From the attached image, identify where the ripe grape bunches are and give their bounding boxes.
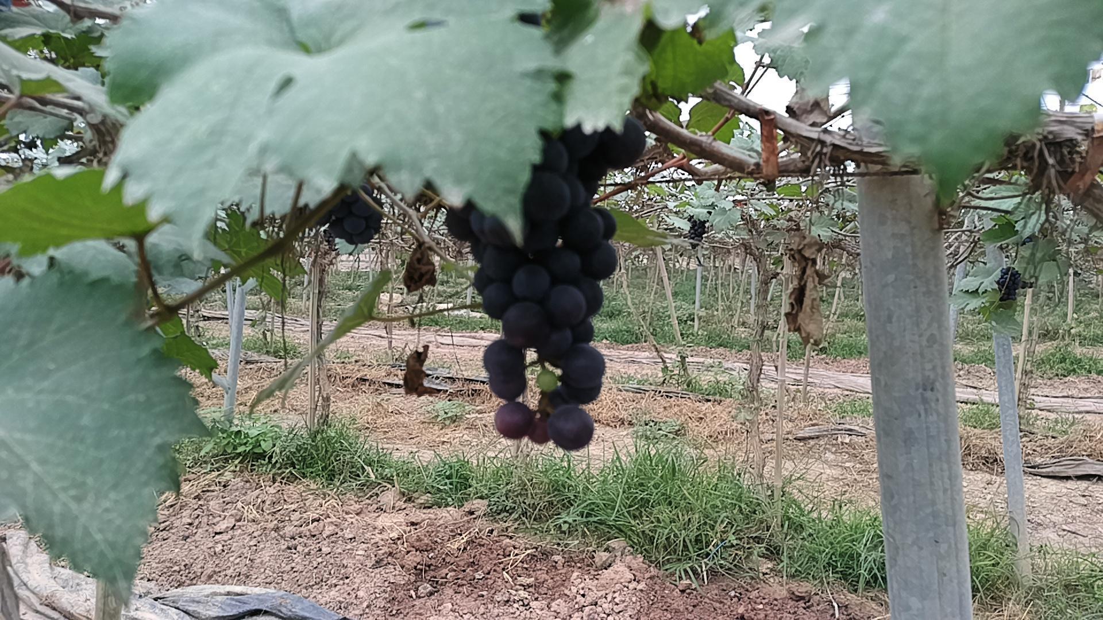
[995,266,1021,301]
[685,211,711,249]
[318,184,383,247]
[445,118,645,449]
